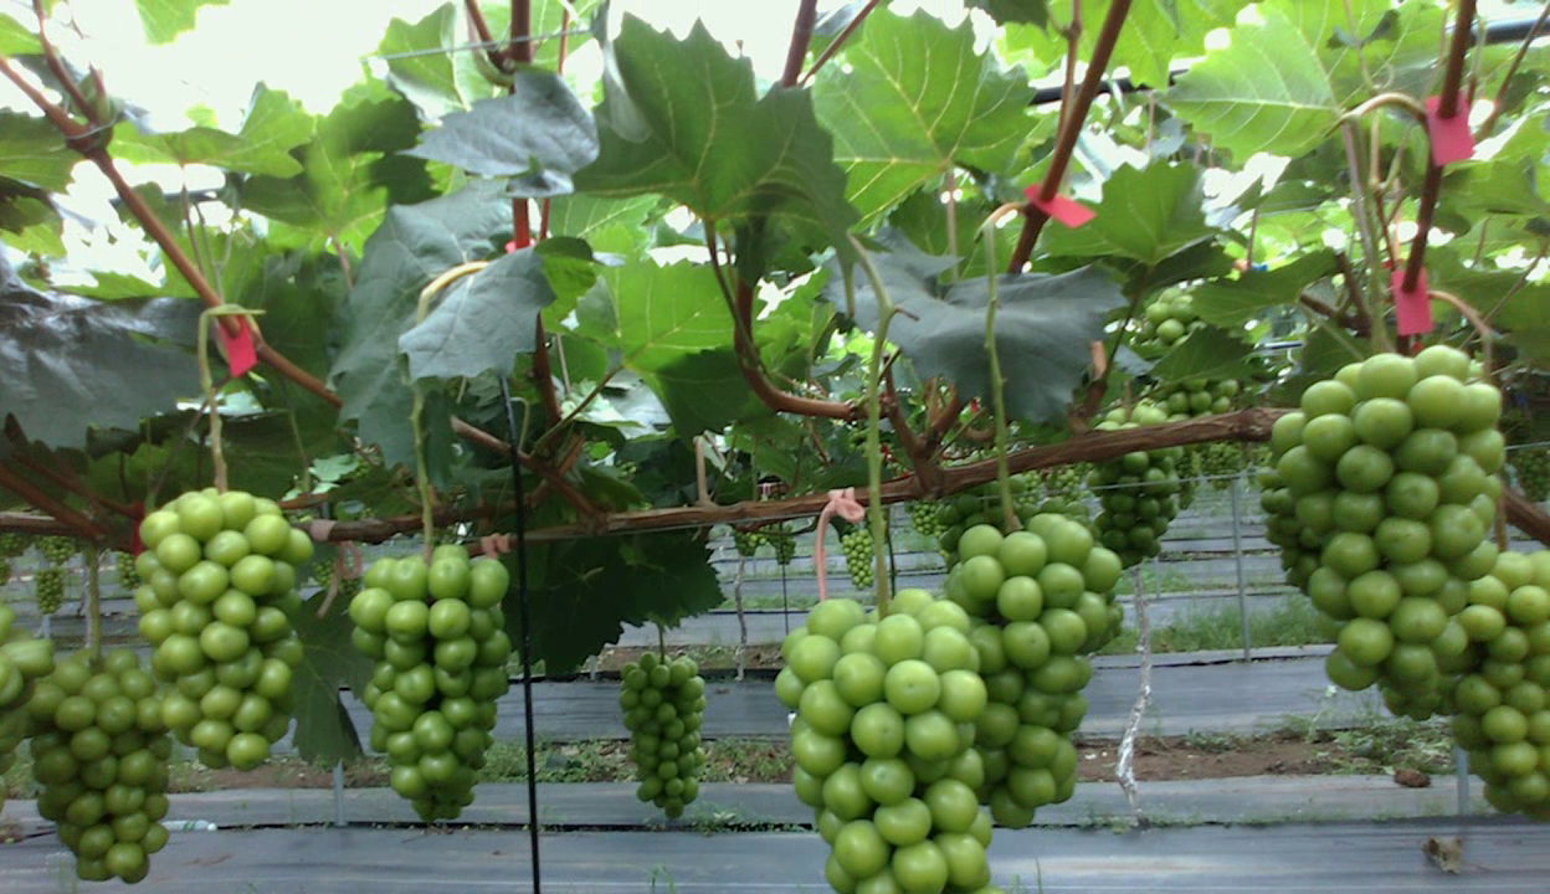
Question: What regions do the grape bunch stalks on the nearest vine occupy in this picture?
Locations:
[982,204,1020,533]
[196,304,242,494]
[409,392,433,565]
[1494,495,1510,553]
[1345,91,1427,354]
[843,236,894,621]
[81,546,101,669]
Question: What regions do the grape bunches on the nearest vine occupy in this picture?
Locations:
[1272,345,1507,690]
[349,543,513,822]
[1451,550,1549,823]
[773,589,1002,893]
[134,487,314,771]
[22,648,173,884]
[938,513,1124,831]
